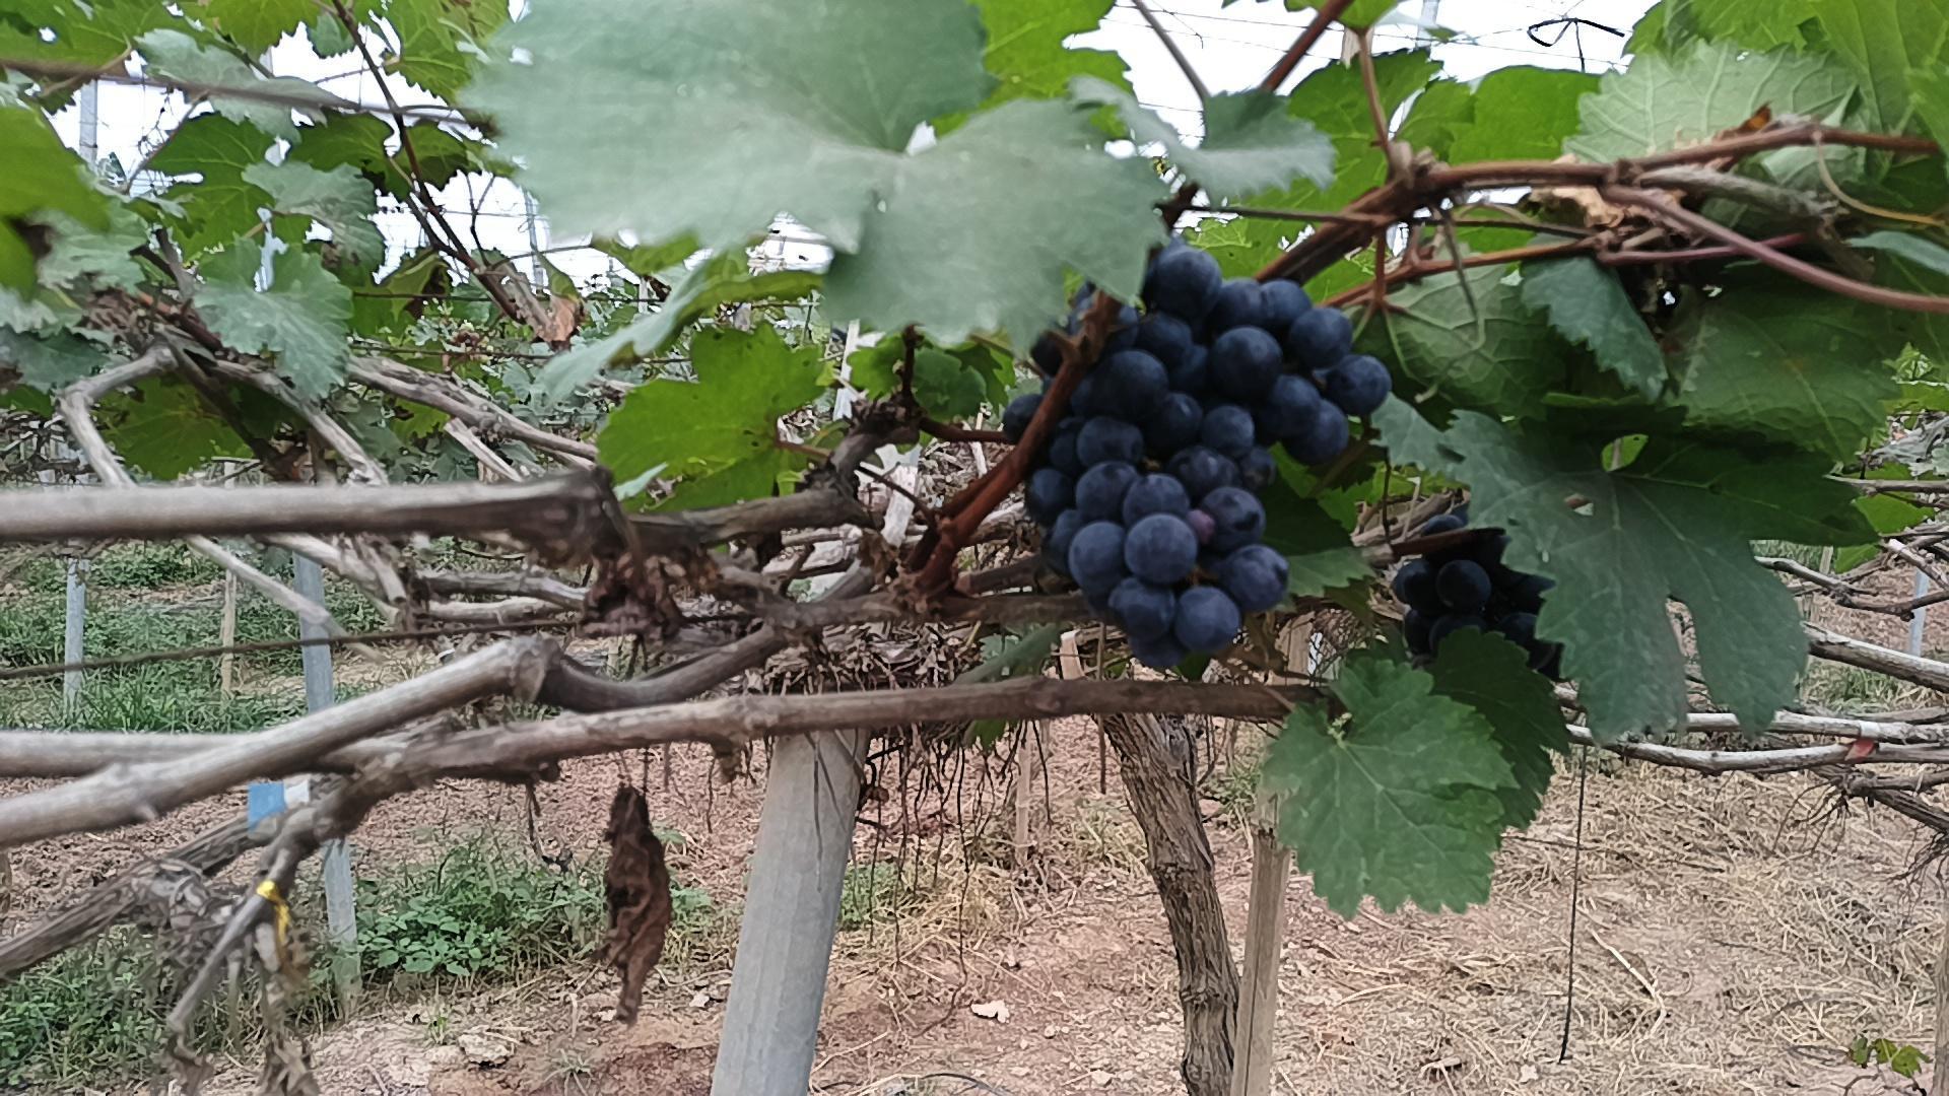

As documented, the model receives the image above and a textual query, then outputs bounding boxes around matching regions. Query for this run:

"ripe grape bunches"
[1391,505,1562,682]
[1003,236,1392,667]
